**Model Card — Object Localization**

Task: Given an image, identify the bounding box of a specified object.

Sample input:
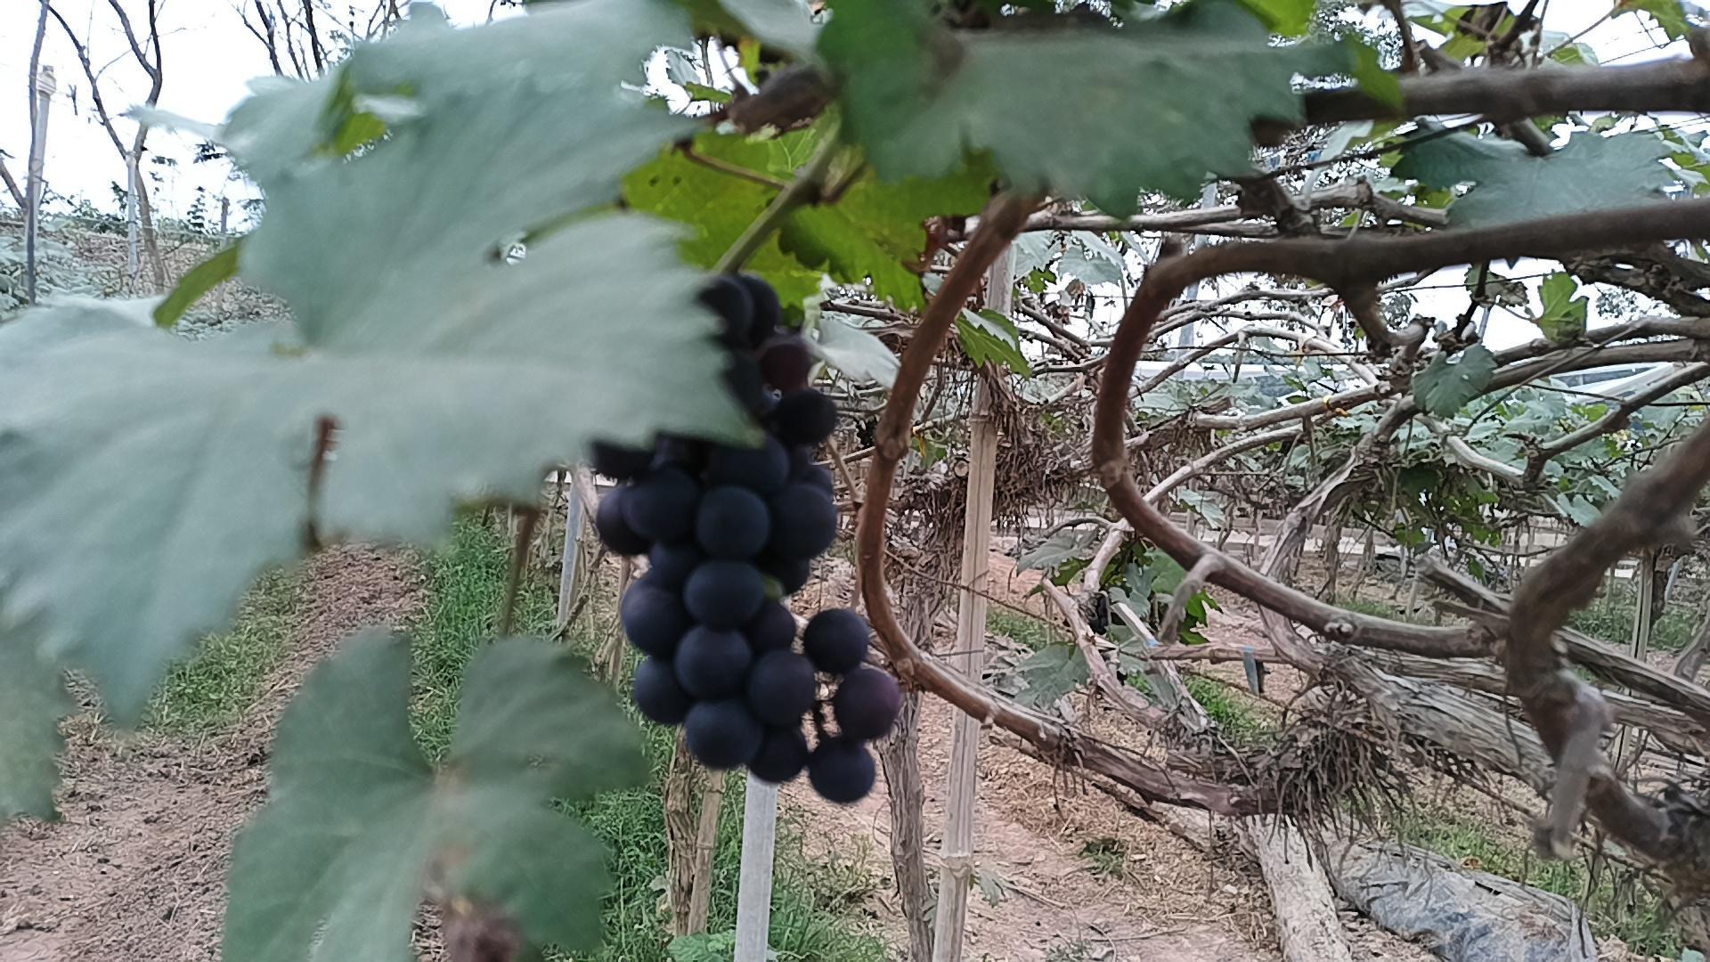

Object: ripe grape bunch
[590,274,902,803]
